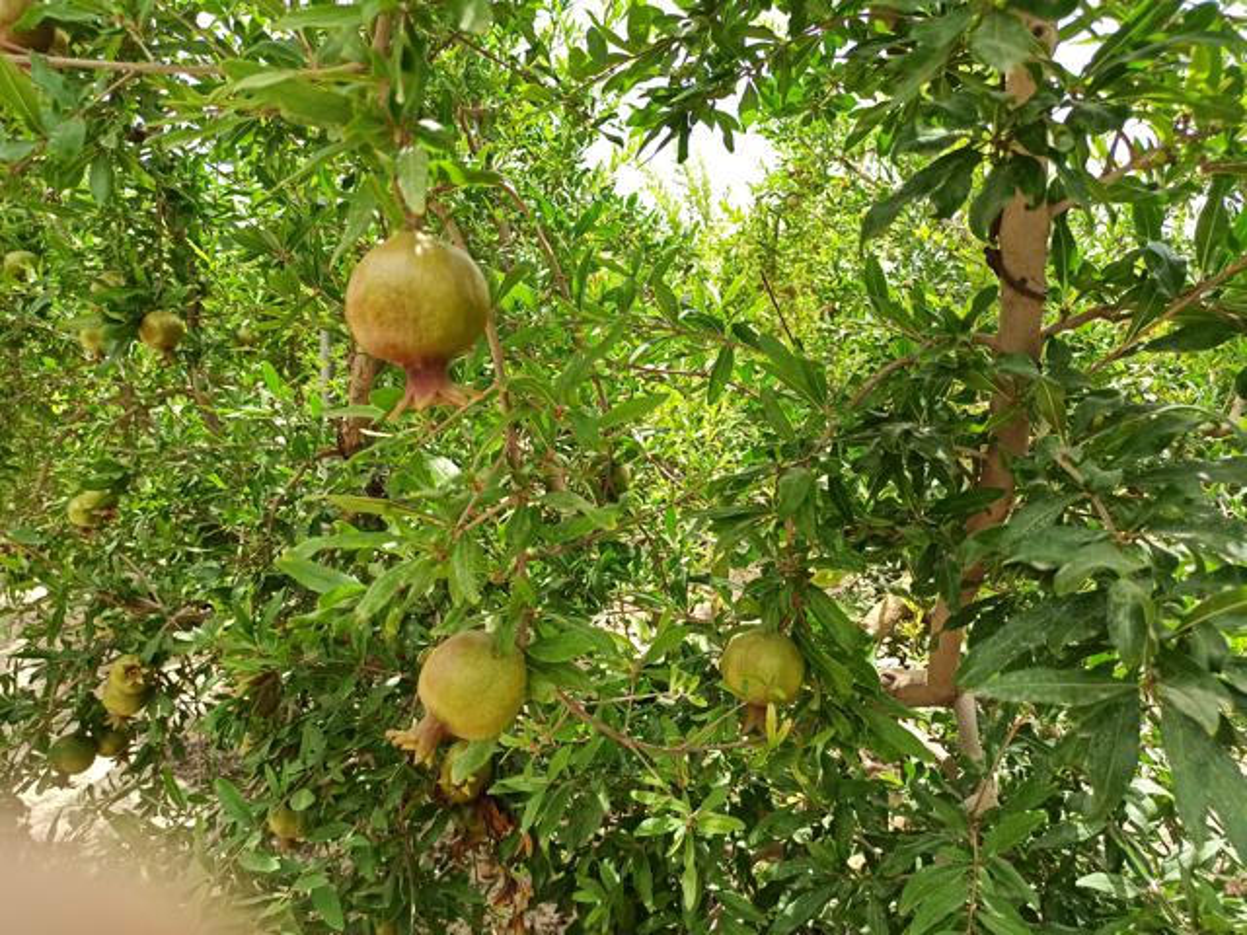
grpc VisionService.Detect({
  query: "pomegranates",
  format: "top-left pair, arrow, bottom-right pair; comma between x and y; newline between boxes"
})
0,0 -> 55,55
343,234 -> 493,425
107,653 -> 156,695
94,732 -> 134,766
80,327 -> 105,362
721,631 -> 807,734
66,489 -> 119,530
101,680 -> 144,732
438,738 -> 493,804
269,808 -> 306,855
138,310 -> 187,362
47,732 -> 97,791
384,631 -> 526,771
